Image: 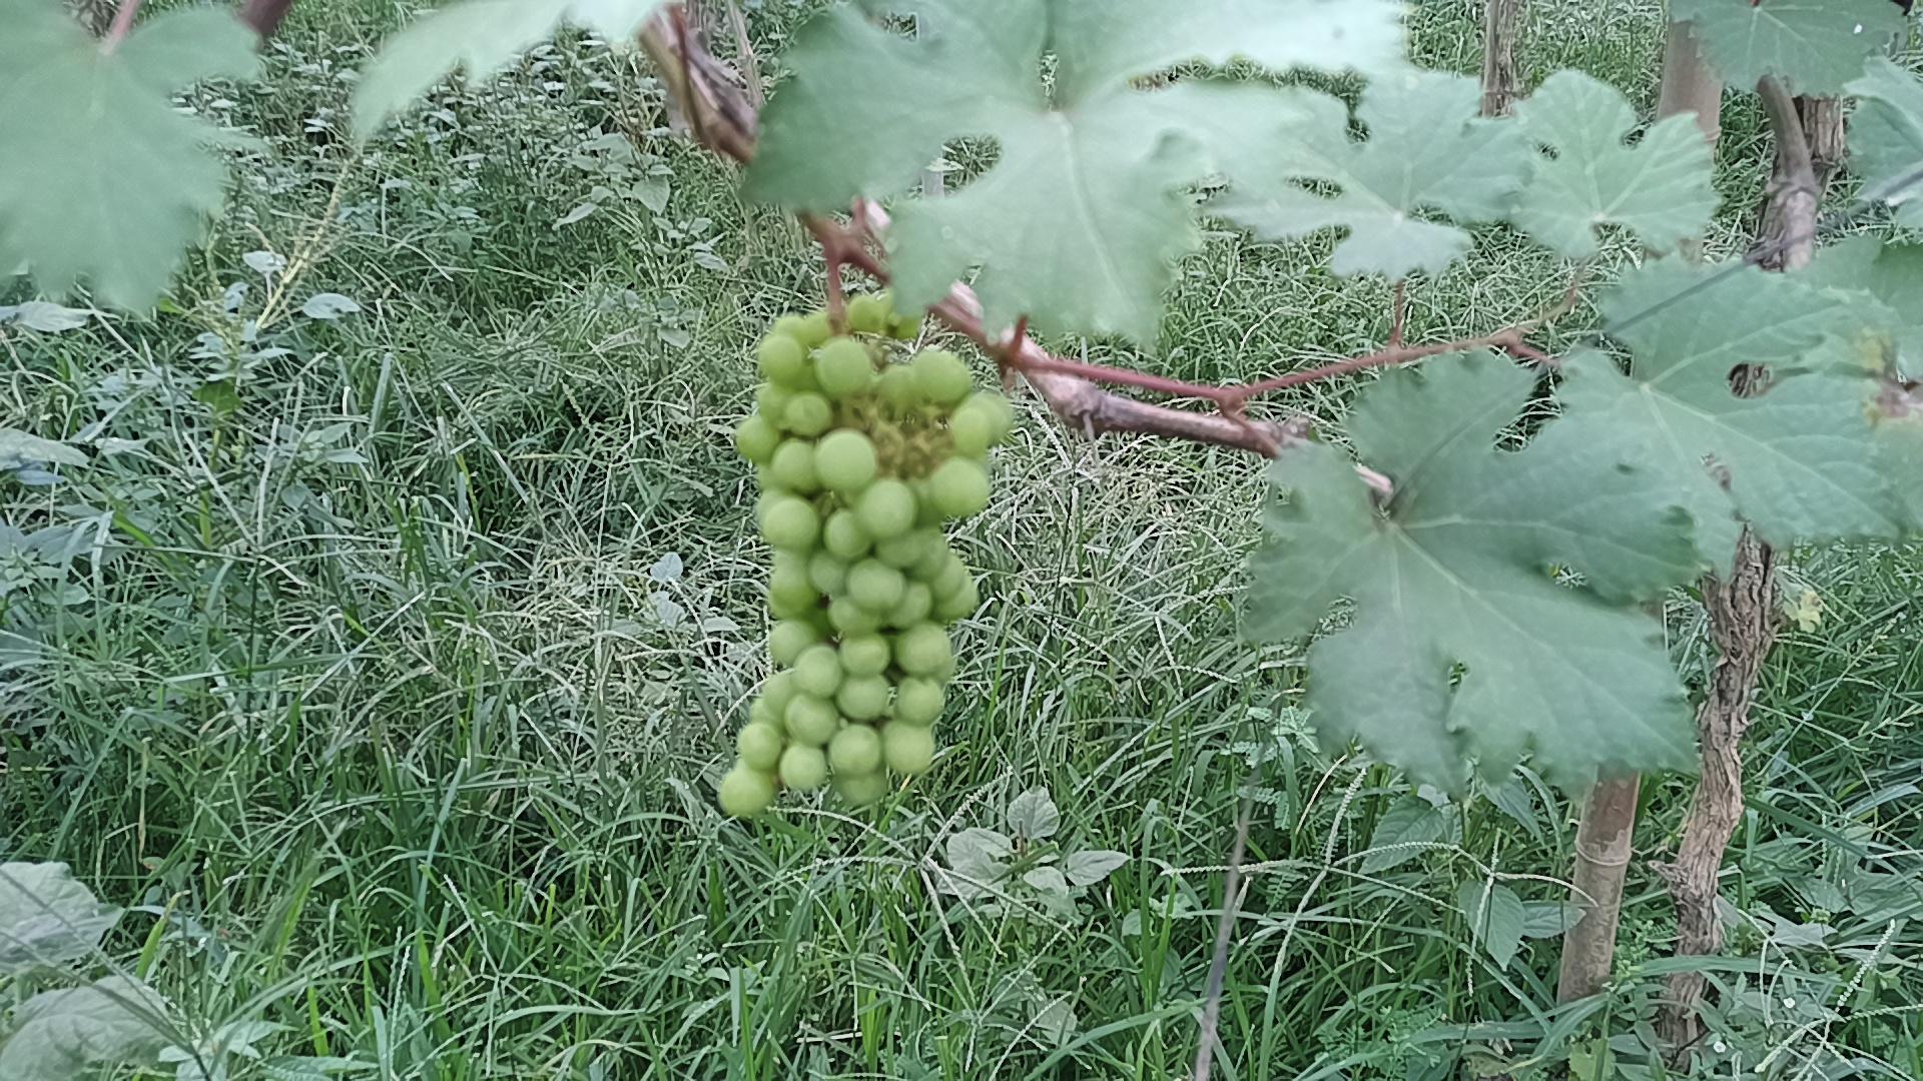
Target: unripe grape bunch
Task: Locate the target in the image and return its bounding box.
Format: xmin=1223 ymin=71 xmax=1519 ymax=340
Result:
xmin=719 ymin=292 xmax=1013 ymax=816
